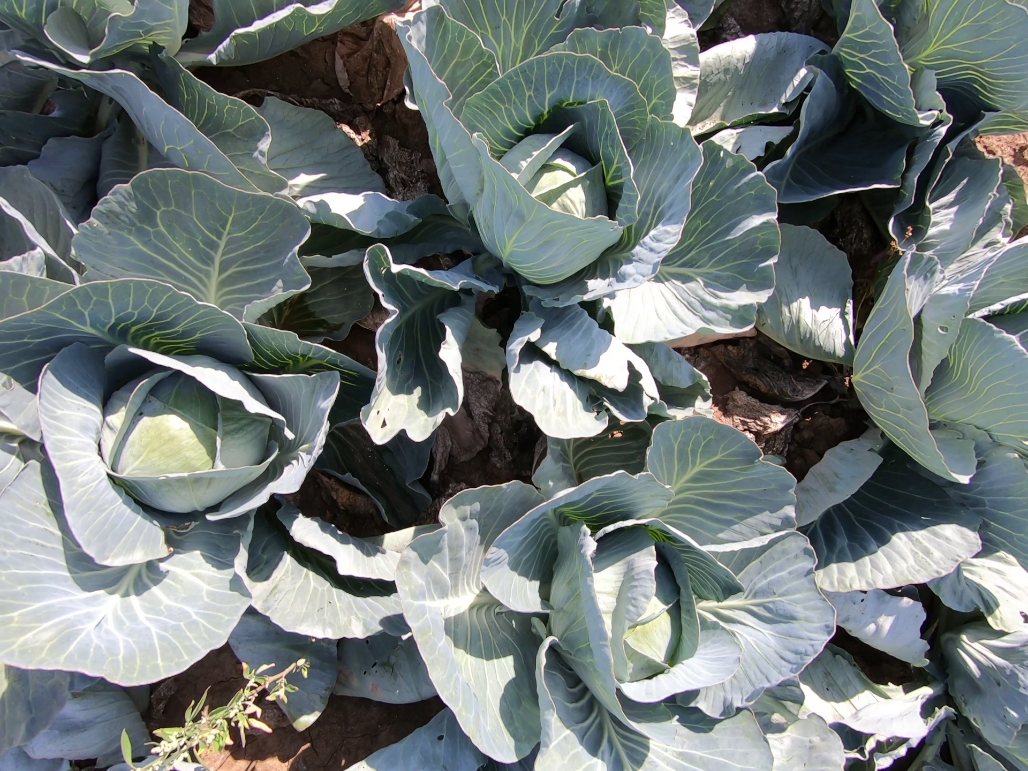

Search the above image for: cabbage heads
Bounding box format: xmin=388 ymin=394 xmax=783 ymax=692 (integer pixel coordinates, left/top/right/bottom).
xmin=575 ymin=549 xmax=685 ymax=679
xmin=108 ymin=361 xmax=266 ymax=507
xmin=496 ymin=147 xmax=606 ymax=266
